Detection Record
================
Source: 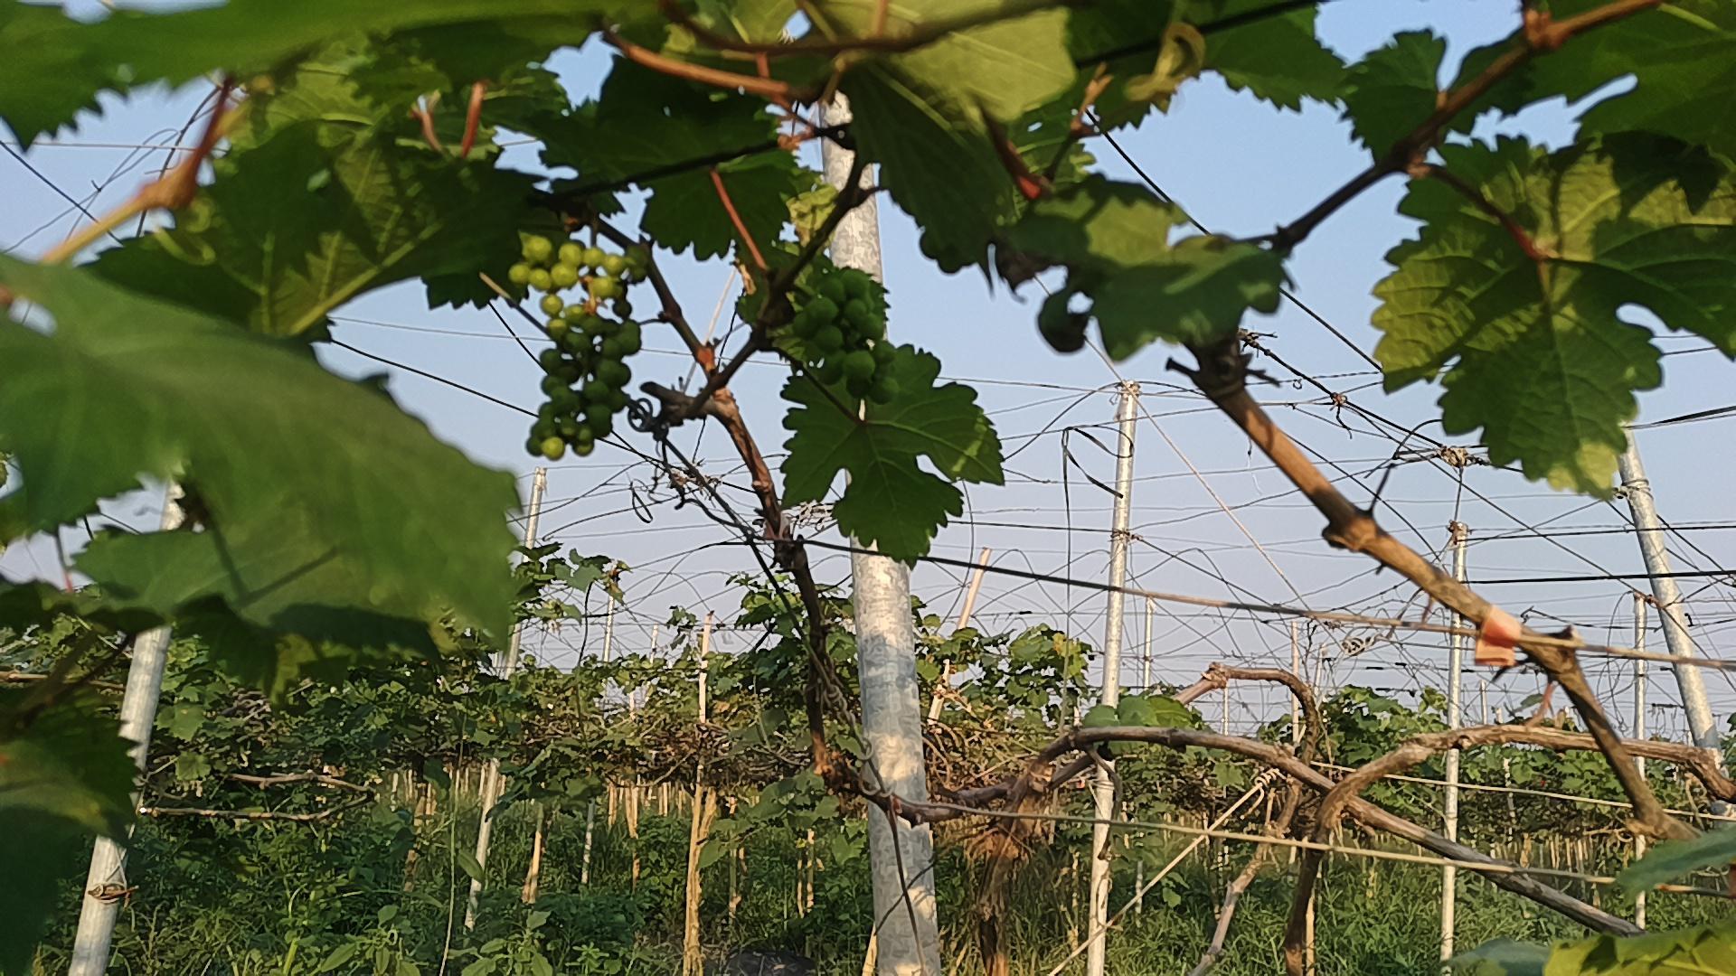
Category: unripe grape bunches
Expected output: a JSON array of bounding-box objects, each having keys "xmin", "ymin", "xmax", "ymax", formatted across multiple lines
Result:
[
  {"xmin": 510, "ymin": 239, "xmax": 650, "ymax": 461},
  {"xmin": 790, "ymin": 265, "xmax": 895, "ymax": 401}
]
